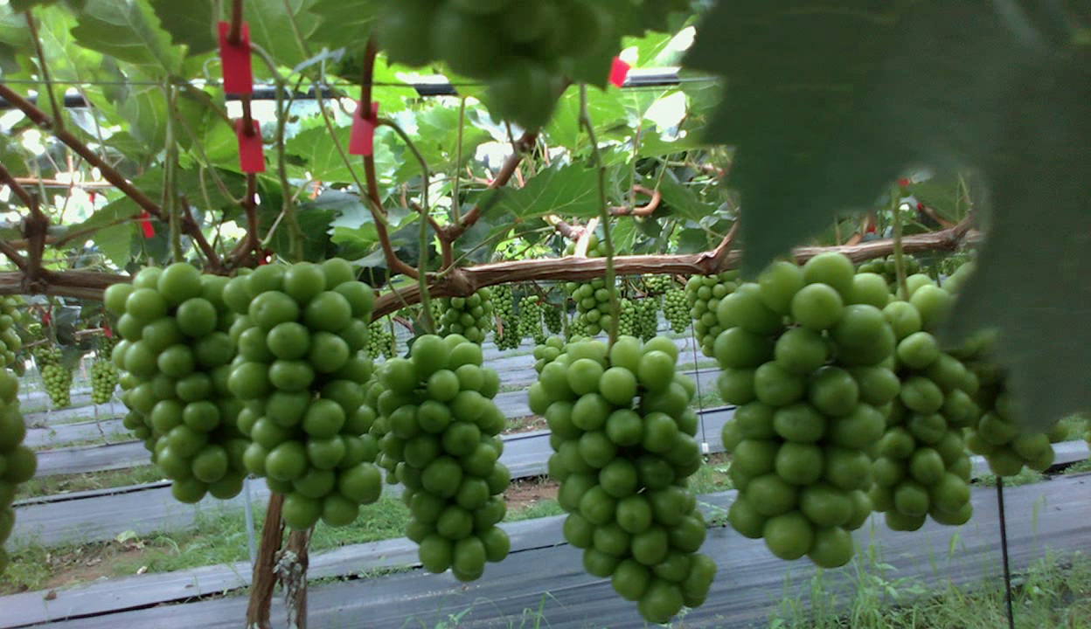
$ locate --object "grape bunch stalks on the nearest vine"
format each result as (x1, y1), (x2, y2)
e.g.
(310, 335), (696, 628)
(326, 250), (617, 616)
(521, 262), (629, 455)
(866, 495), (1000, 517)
(578, 84), (620, 345)
(888, 186), (908, 299)
(249, 42), (302, 261)
(161, 73), (236, 265)
(377, 118), (434, 332)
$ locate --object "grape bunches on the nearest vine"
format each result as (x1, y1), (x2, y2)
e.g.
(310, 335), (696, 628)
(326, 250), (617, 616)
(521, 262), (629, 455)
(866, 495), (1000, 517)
(103, 262), (253, 502)
(528, 335), (717, 623)
(713, 252), (899, 568)
(866, 274), (978, 529)
(379, 334), (511, 581)
(225, 258), (381, 529)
